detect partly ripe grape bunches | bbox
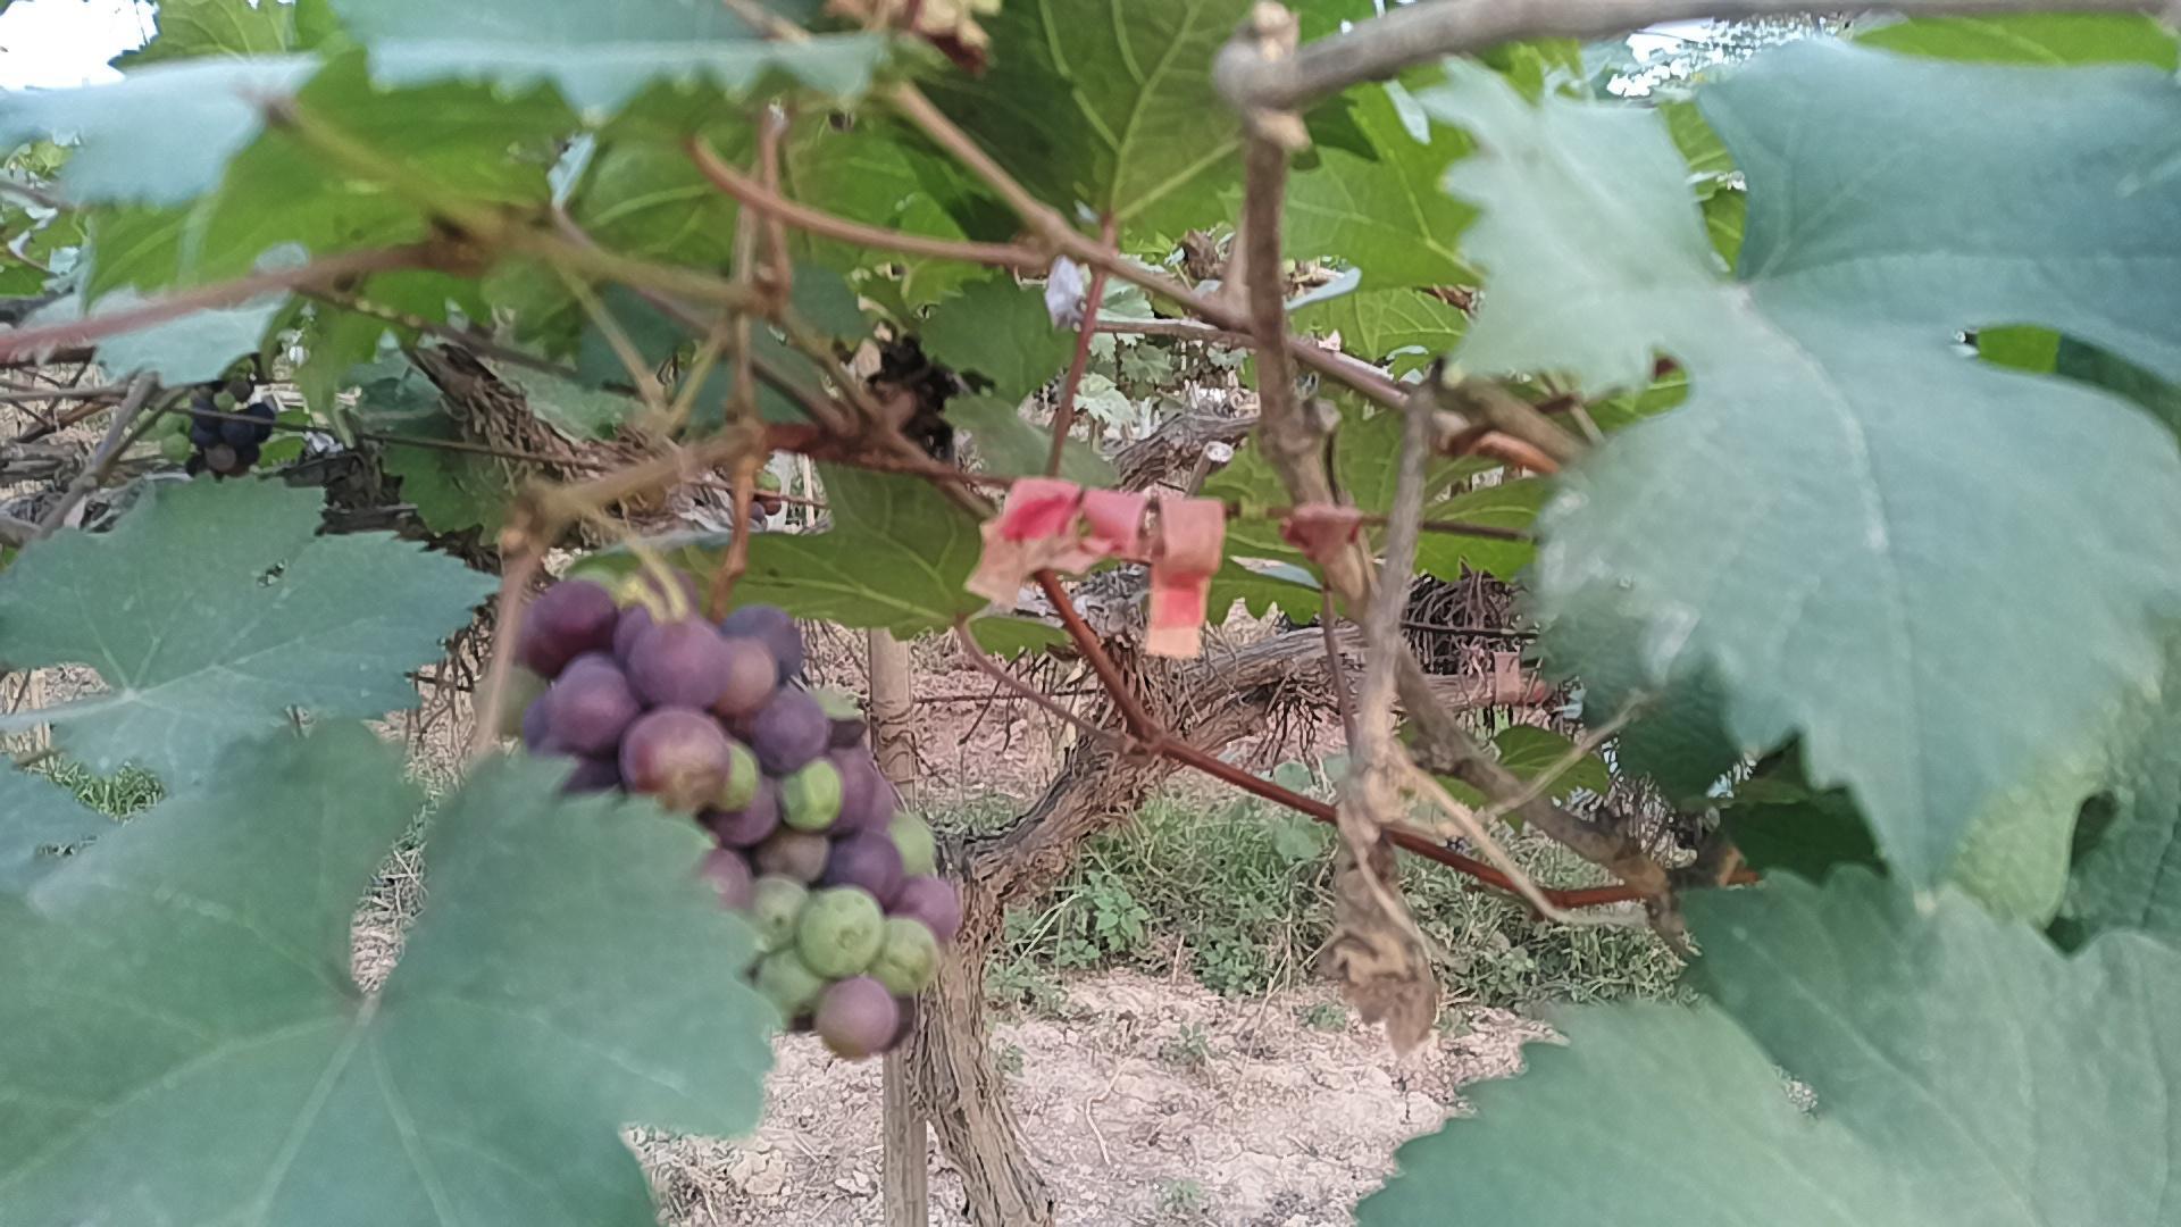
[518,577,956,1058]
[184,379,277,478]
